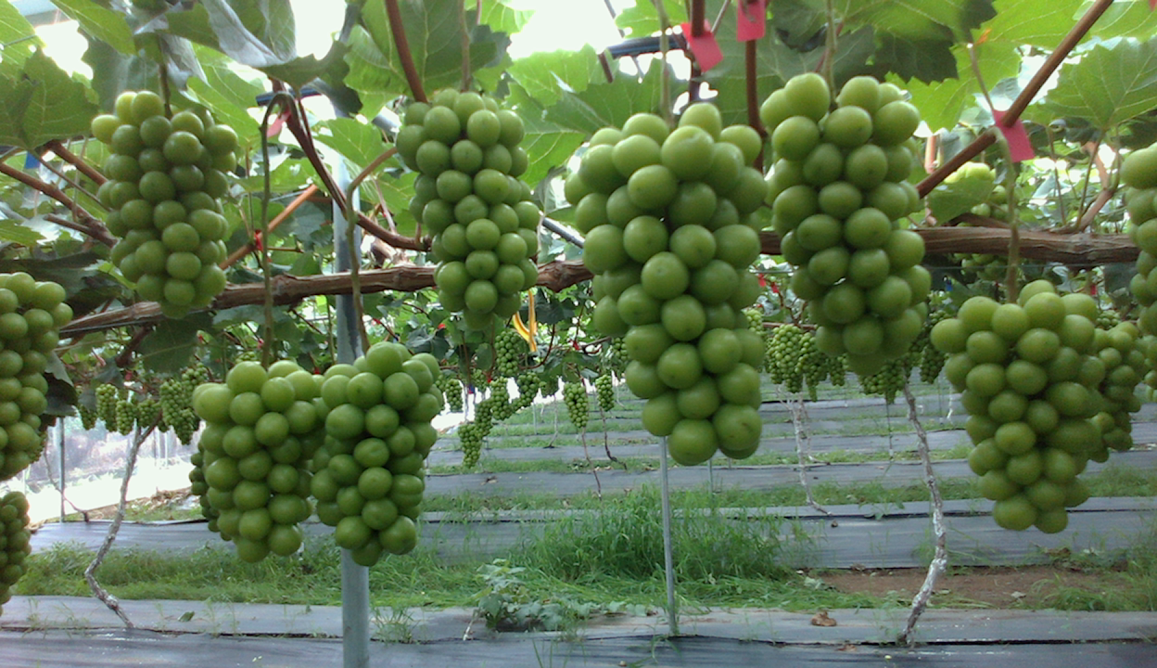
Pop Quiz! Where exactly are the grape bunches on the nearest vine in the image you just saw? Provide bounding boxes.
[929,280,1106,533]
[92,90,239,318]
[760,73,933,375]
[565,103,769,465]
[193,361,330,562]
[397,87,542,331]
[0,271,71,482]
[311,342,444,566]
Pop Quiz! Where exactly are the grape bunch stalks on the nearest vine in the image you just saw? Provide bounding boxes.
[657,10,676,130]
[344,146,397,354]
[158,66,172,118]
[985,125,1020,303]
[455,0,473,92]
[261,91,299,368]
[823,2,837,113]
